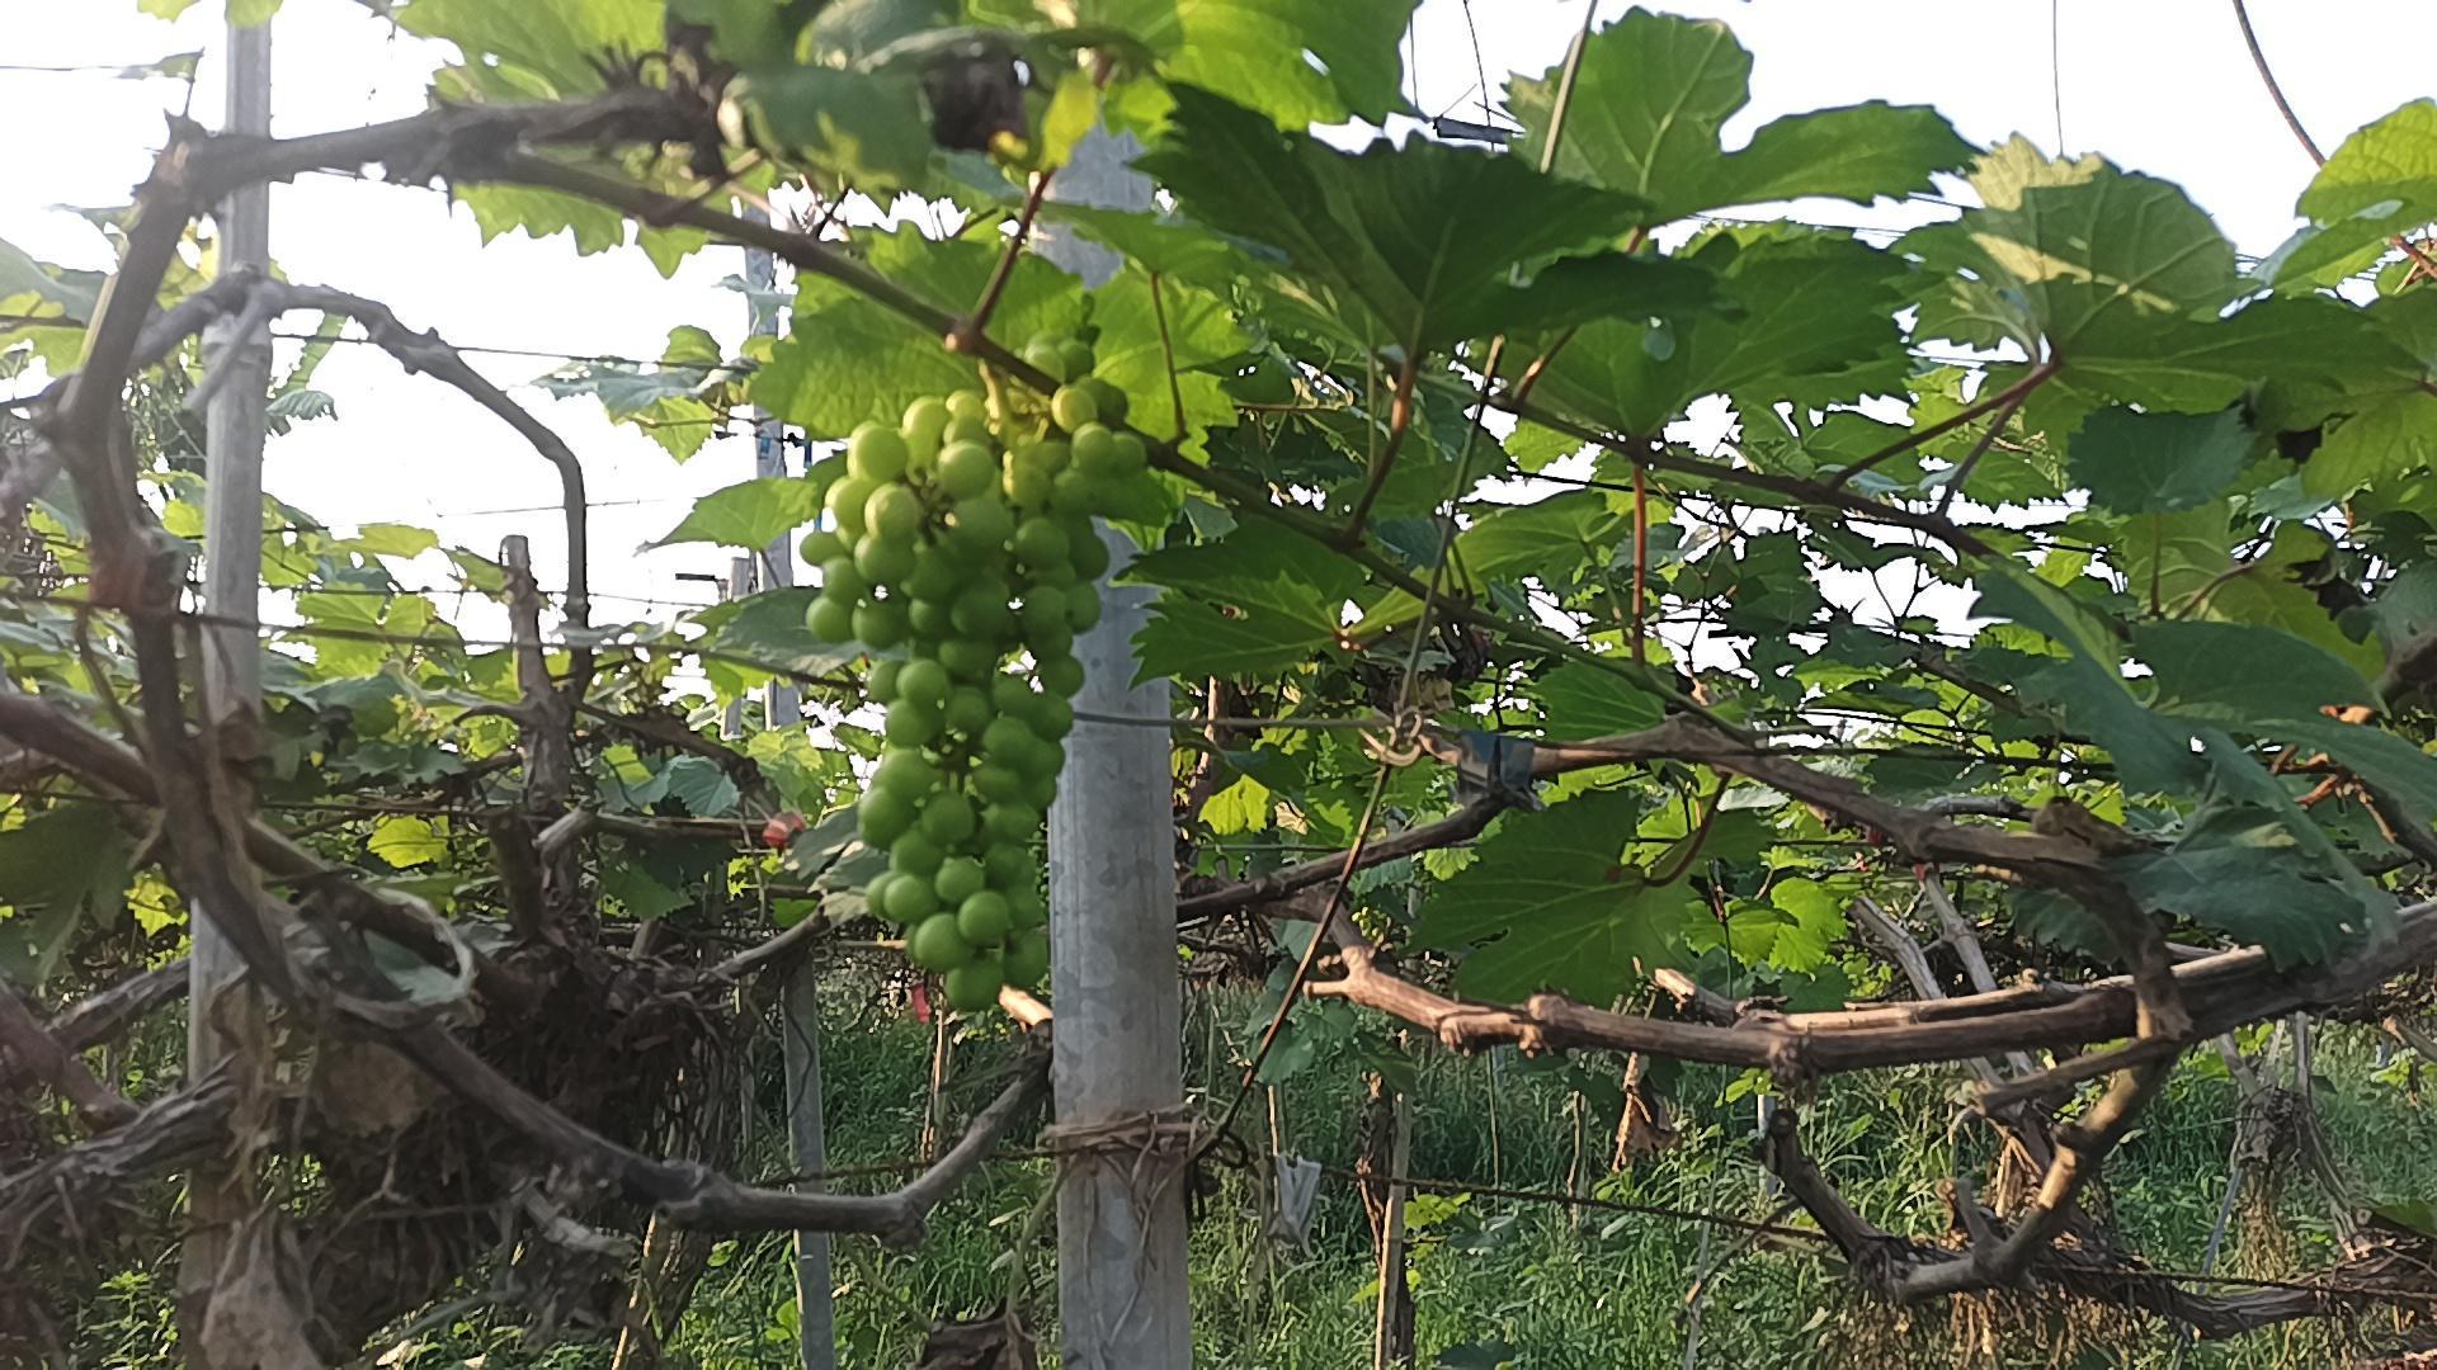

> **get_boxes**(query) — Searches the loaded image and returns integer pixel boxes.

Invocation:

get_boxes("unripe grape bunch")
[801,336,1163,1008]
